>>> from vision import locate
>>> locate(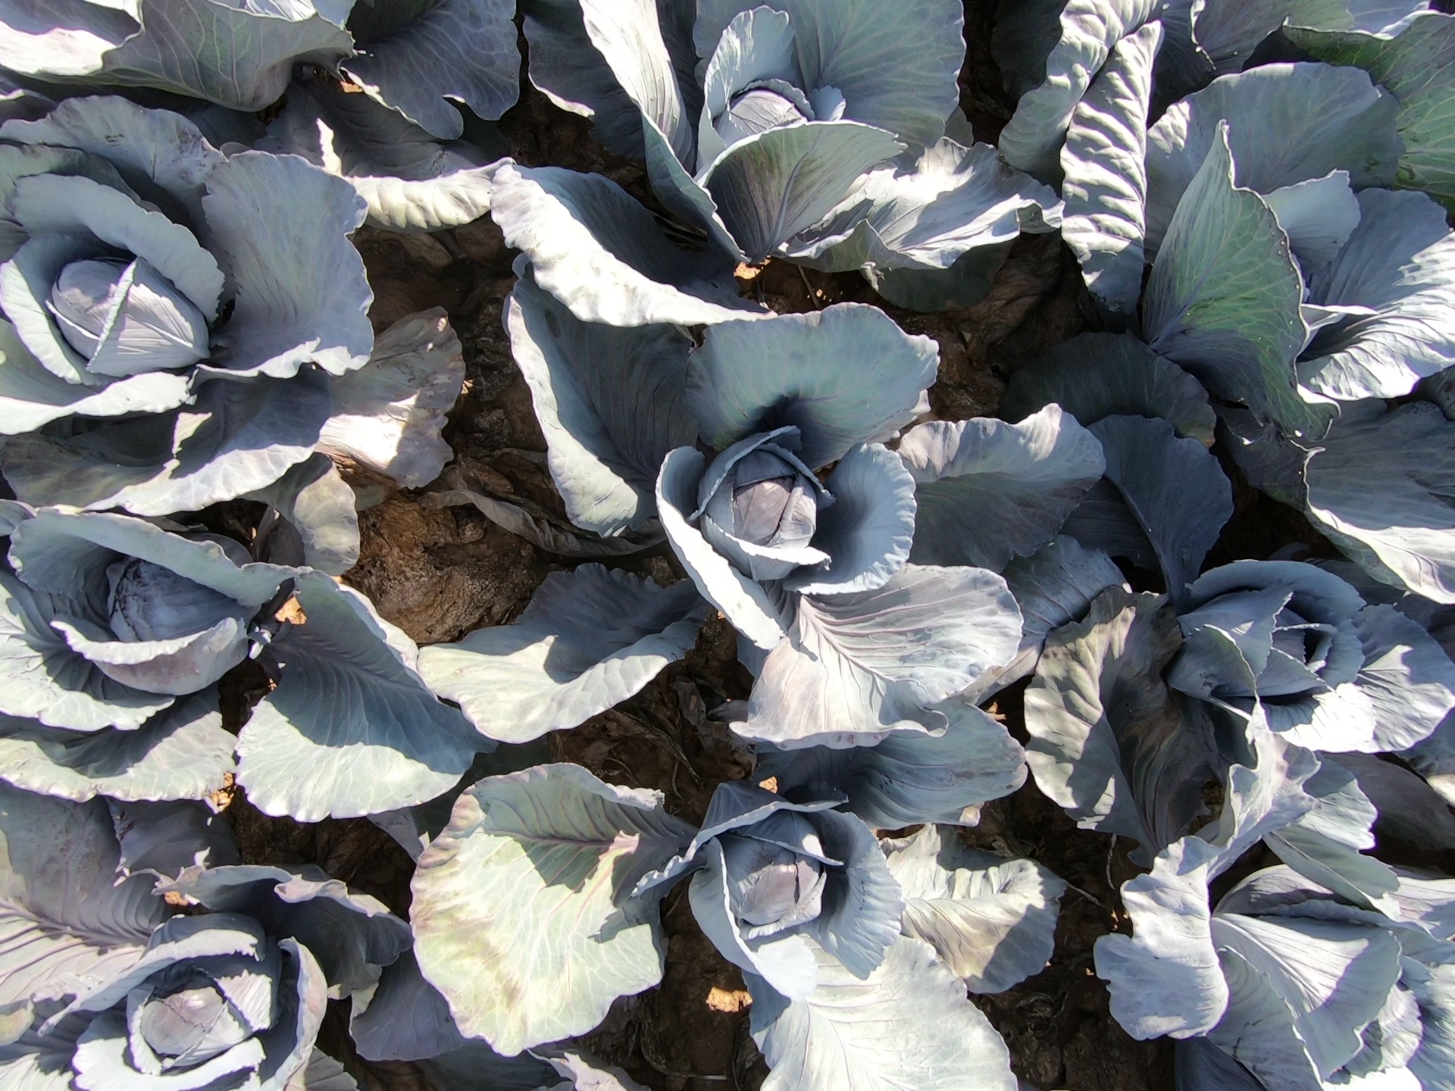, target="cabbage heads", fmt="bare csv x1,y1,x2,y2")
109,545,252,655
48,256,183,360
699,449,813,574
725,815,821,928
719,89,819,203
136,943,267,1059
1248,944,1417,1075
1210,598,1314,693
